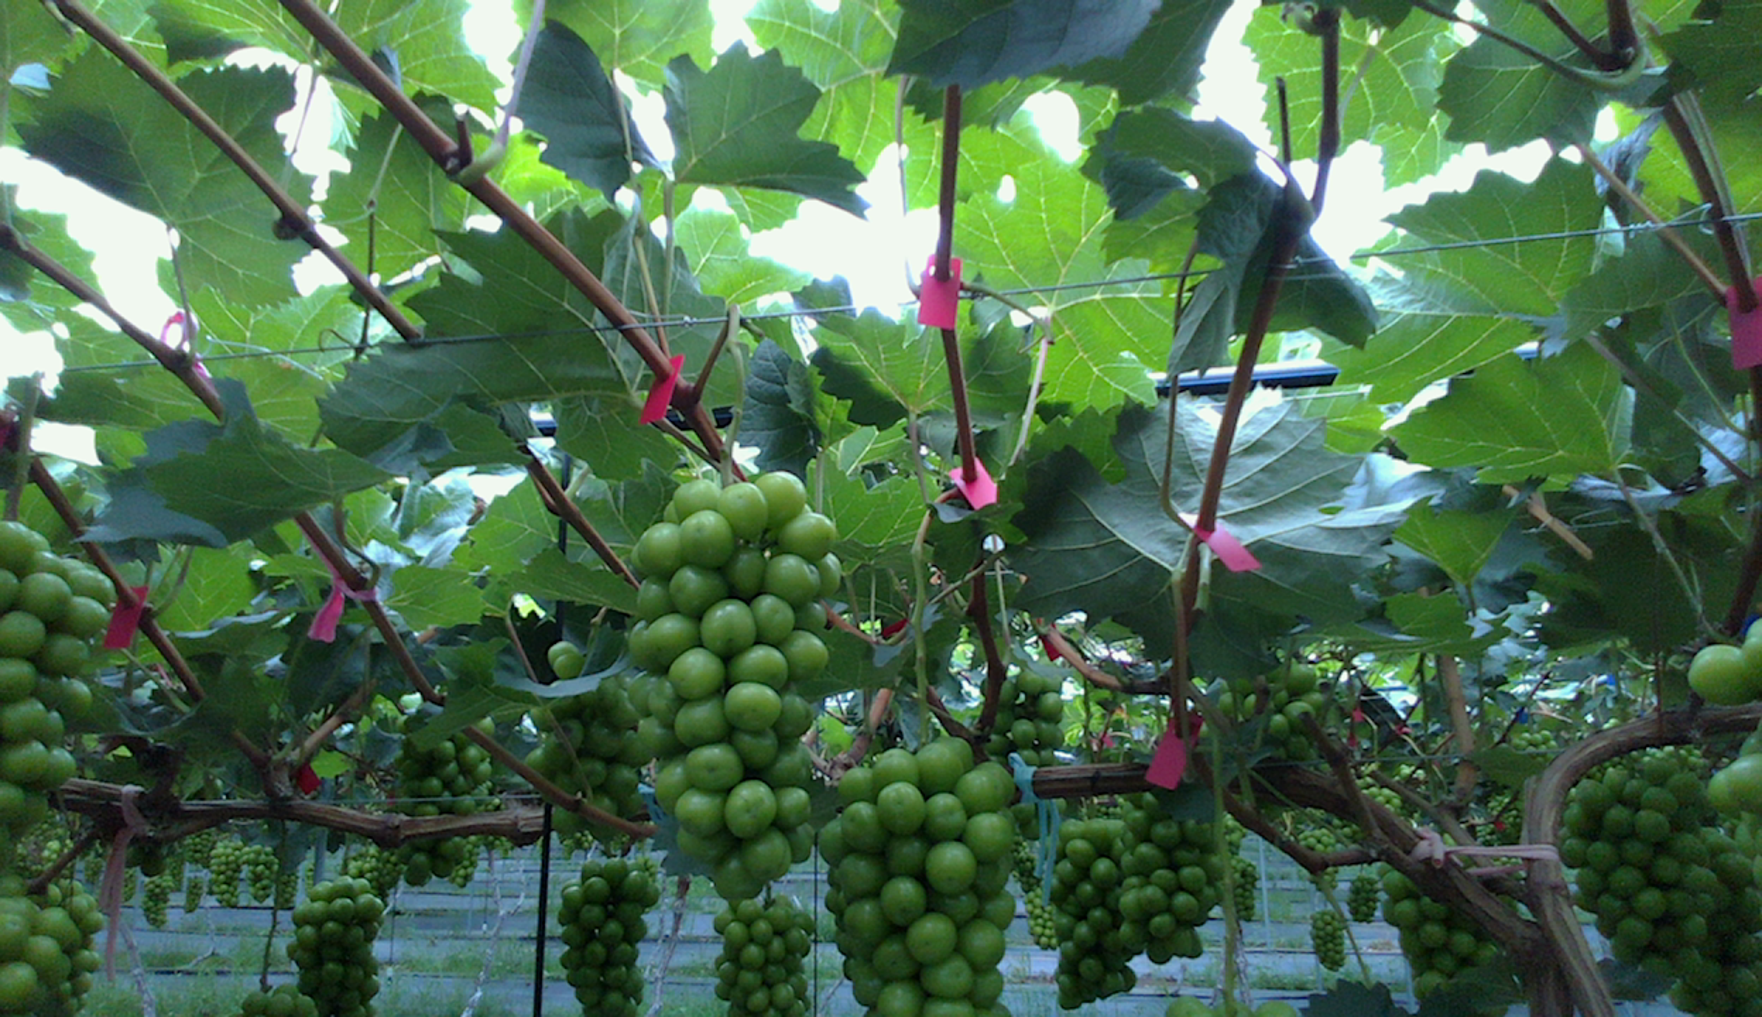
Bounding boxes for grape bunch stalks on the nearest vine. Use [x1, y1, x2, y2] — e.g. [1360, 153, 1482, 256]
[25, 826, 102, 896]
[909, 487, 964, 749]
[1189, 689, 1238, 1016]
[3, 373, 44, 523]
[260, 822, 287, 993]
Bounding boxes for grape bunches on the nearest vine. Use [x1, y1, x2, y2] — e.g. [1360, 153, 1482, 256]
[1165, 994, 1297, 1016]
[1689, 617, 1761, 884]
[234, 982, 316, 1016]
[628, 472, 841, 898]
[0, 873, 82, 1016]
[0, 521, 114, 842]
[817, 736, 1018, 1016]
